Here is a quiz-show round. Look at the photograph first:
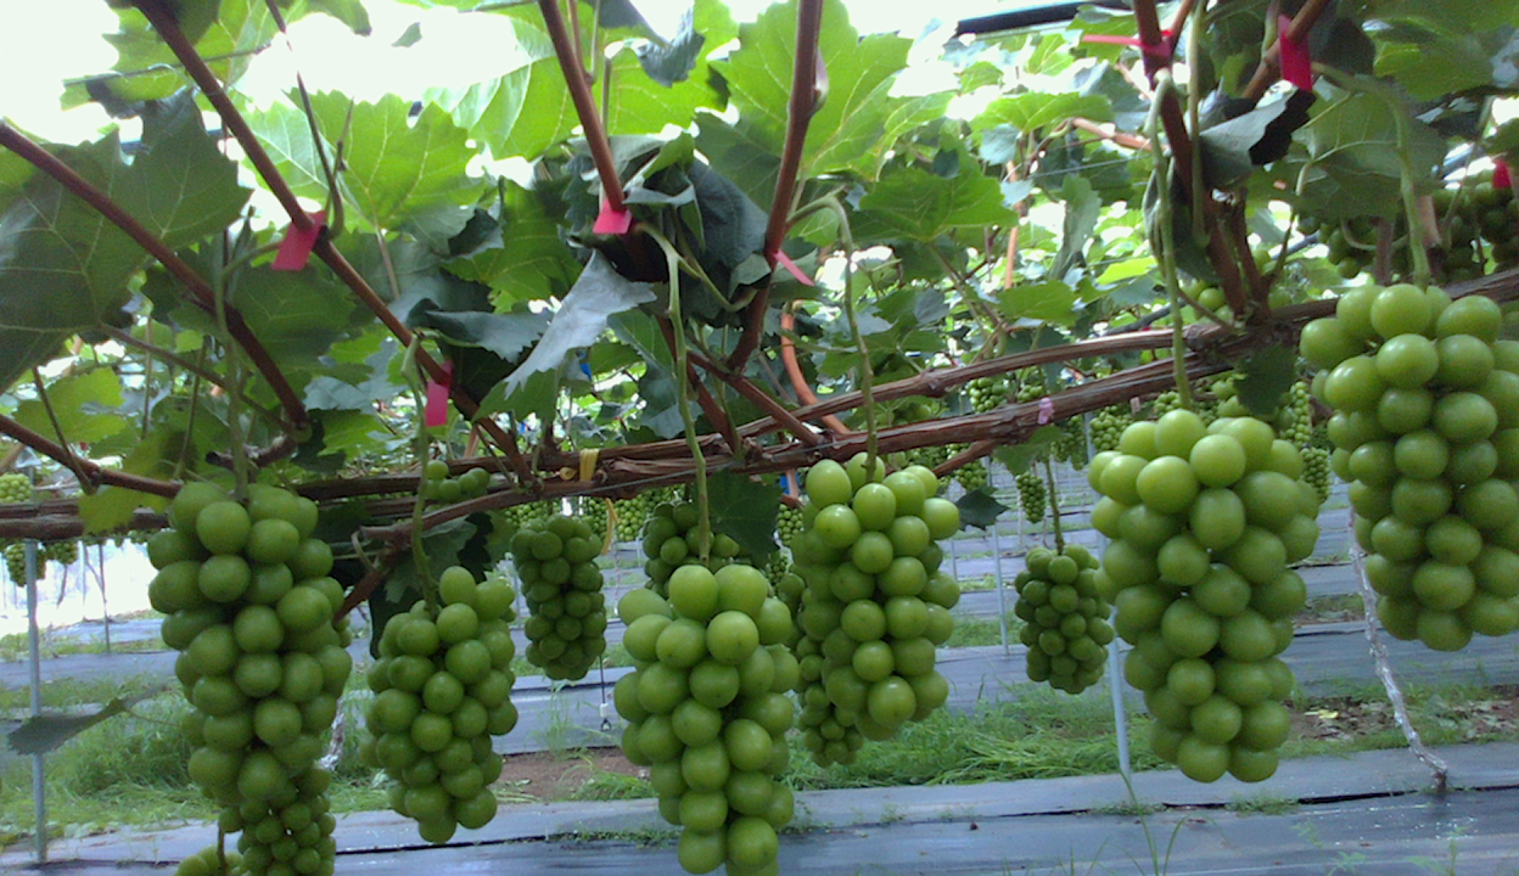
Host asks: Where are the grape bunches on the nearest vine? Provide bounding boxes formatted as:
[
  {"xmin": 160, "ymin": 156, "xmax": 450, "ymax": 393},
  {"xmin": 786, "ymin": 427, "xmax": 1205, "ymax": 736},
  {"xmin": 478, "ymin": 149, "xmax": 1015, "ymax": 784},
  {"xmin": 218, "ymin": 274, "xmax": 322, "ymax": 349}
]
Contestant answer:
[
  {"xmin": 1297, "ymin": 283, "xmax": 1515, "ymax": 651},
  {"xmin": 1086, "ymin": 409, "xmax": 1321, "ymax": 782},
  {"xmin": 615, "ymin": 565, "xmax": 802, "ymax": 874},
  {"xmin": 791, "ymin": 451, "xmax": 960, "ymax": 740},
  {"xmin": 360, "ymin": 567, "xmax": 519, "ymax": 842},
  {"xmin": 147, "ymin": 479, "xmax": 352, "ymax": 805}
]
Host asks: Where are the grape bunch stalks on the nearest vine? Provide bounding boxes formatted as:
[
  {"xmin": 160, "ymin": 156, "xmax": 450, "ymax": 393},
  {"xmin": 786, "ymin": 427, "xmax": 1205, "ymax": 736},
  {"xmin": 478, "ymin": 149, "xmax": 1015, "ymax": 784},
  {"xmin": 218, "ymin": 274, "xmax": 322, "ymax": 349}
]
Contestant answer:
[
  {"xmin": 214, "ymin": 238, "xmax": 282, "ymax": 506},
  {"xmin": 1311, "ymin": 62, "xmax": 1430, "ymax": 288},
  {"xmin": 1144, "ymin": 67, "xmax": 1189, "ymax": 406},
  {"xmin": 781, "ymin": 197, "xmax": 878, "ymax": 483},
  {"xmin": 402, "ymin": 335, "xmax": 438, "ymax": 619},
  {"xmin": 626, "ymin": 221, "xmax": 710, "ymax": 567}
]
